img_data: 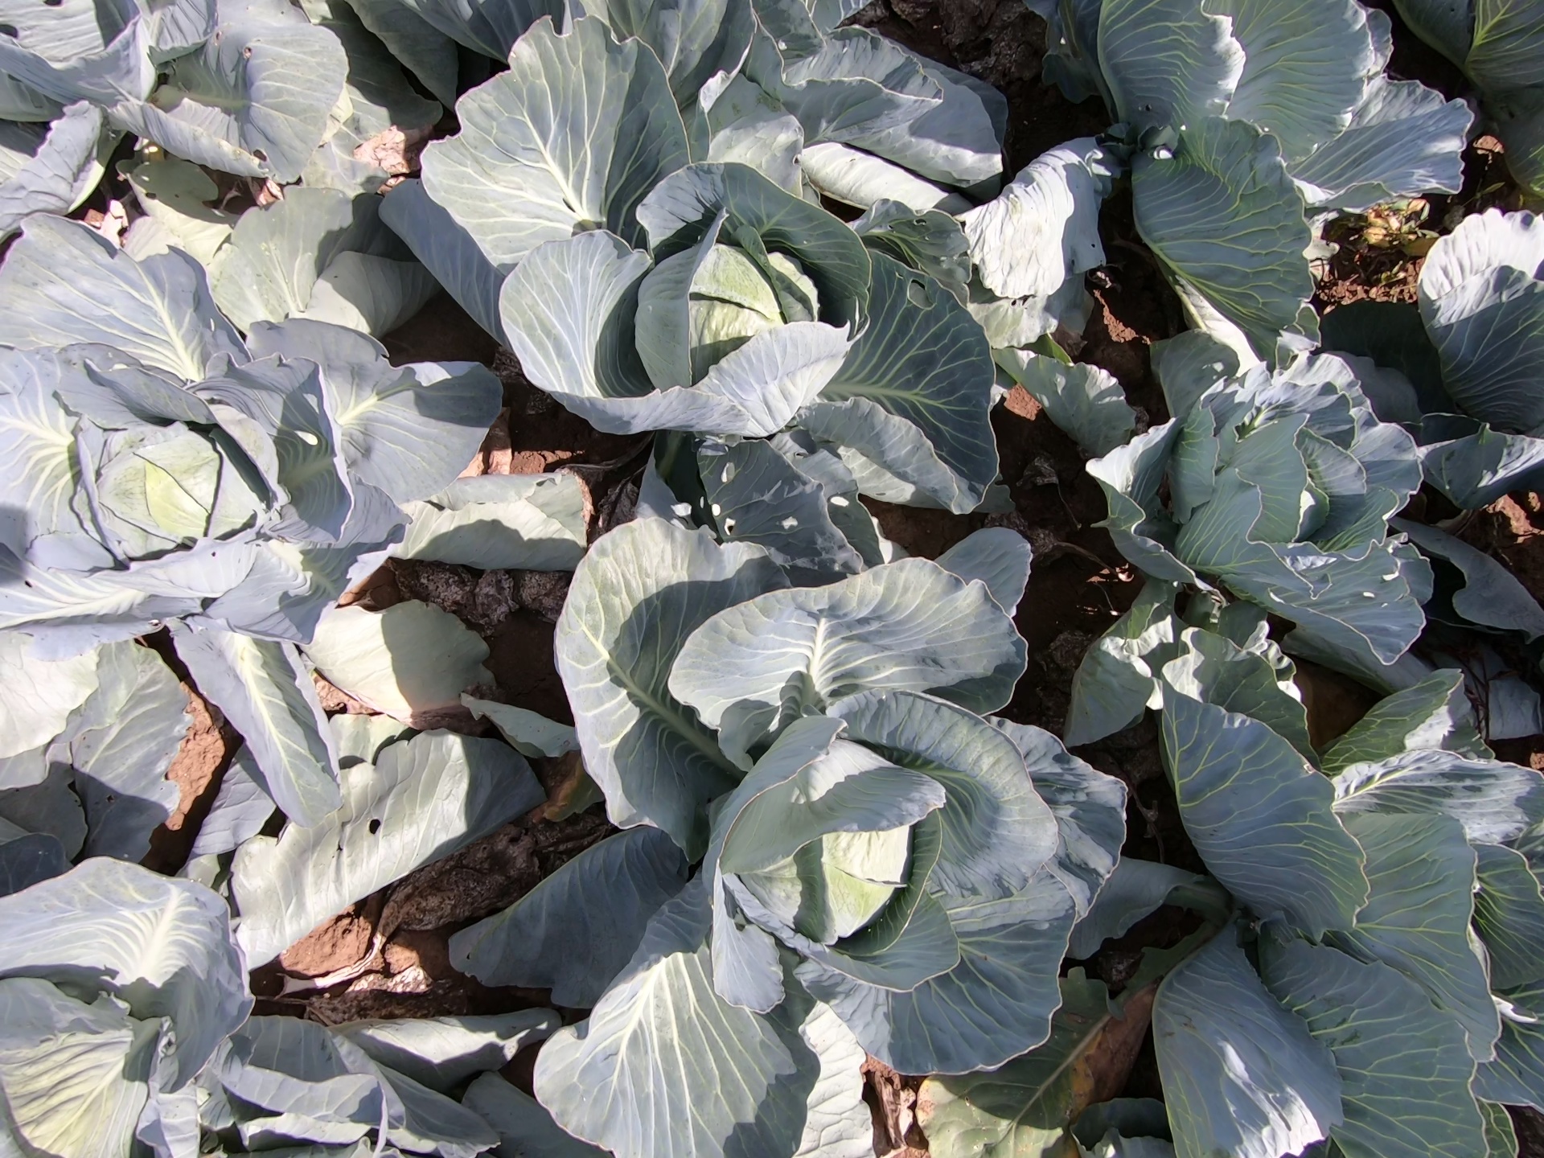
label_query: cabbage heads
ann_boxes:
[1227,455,1316,549]
[733,746,924,944]
[92,422,267,589]
[636,241,815,409]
